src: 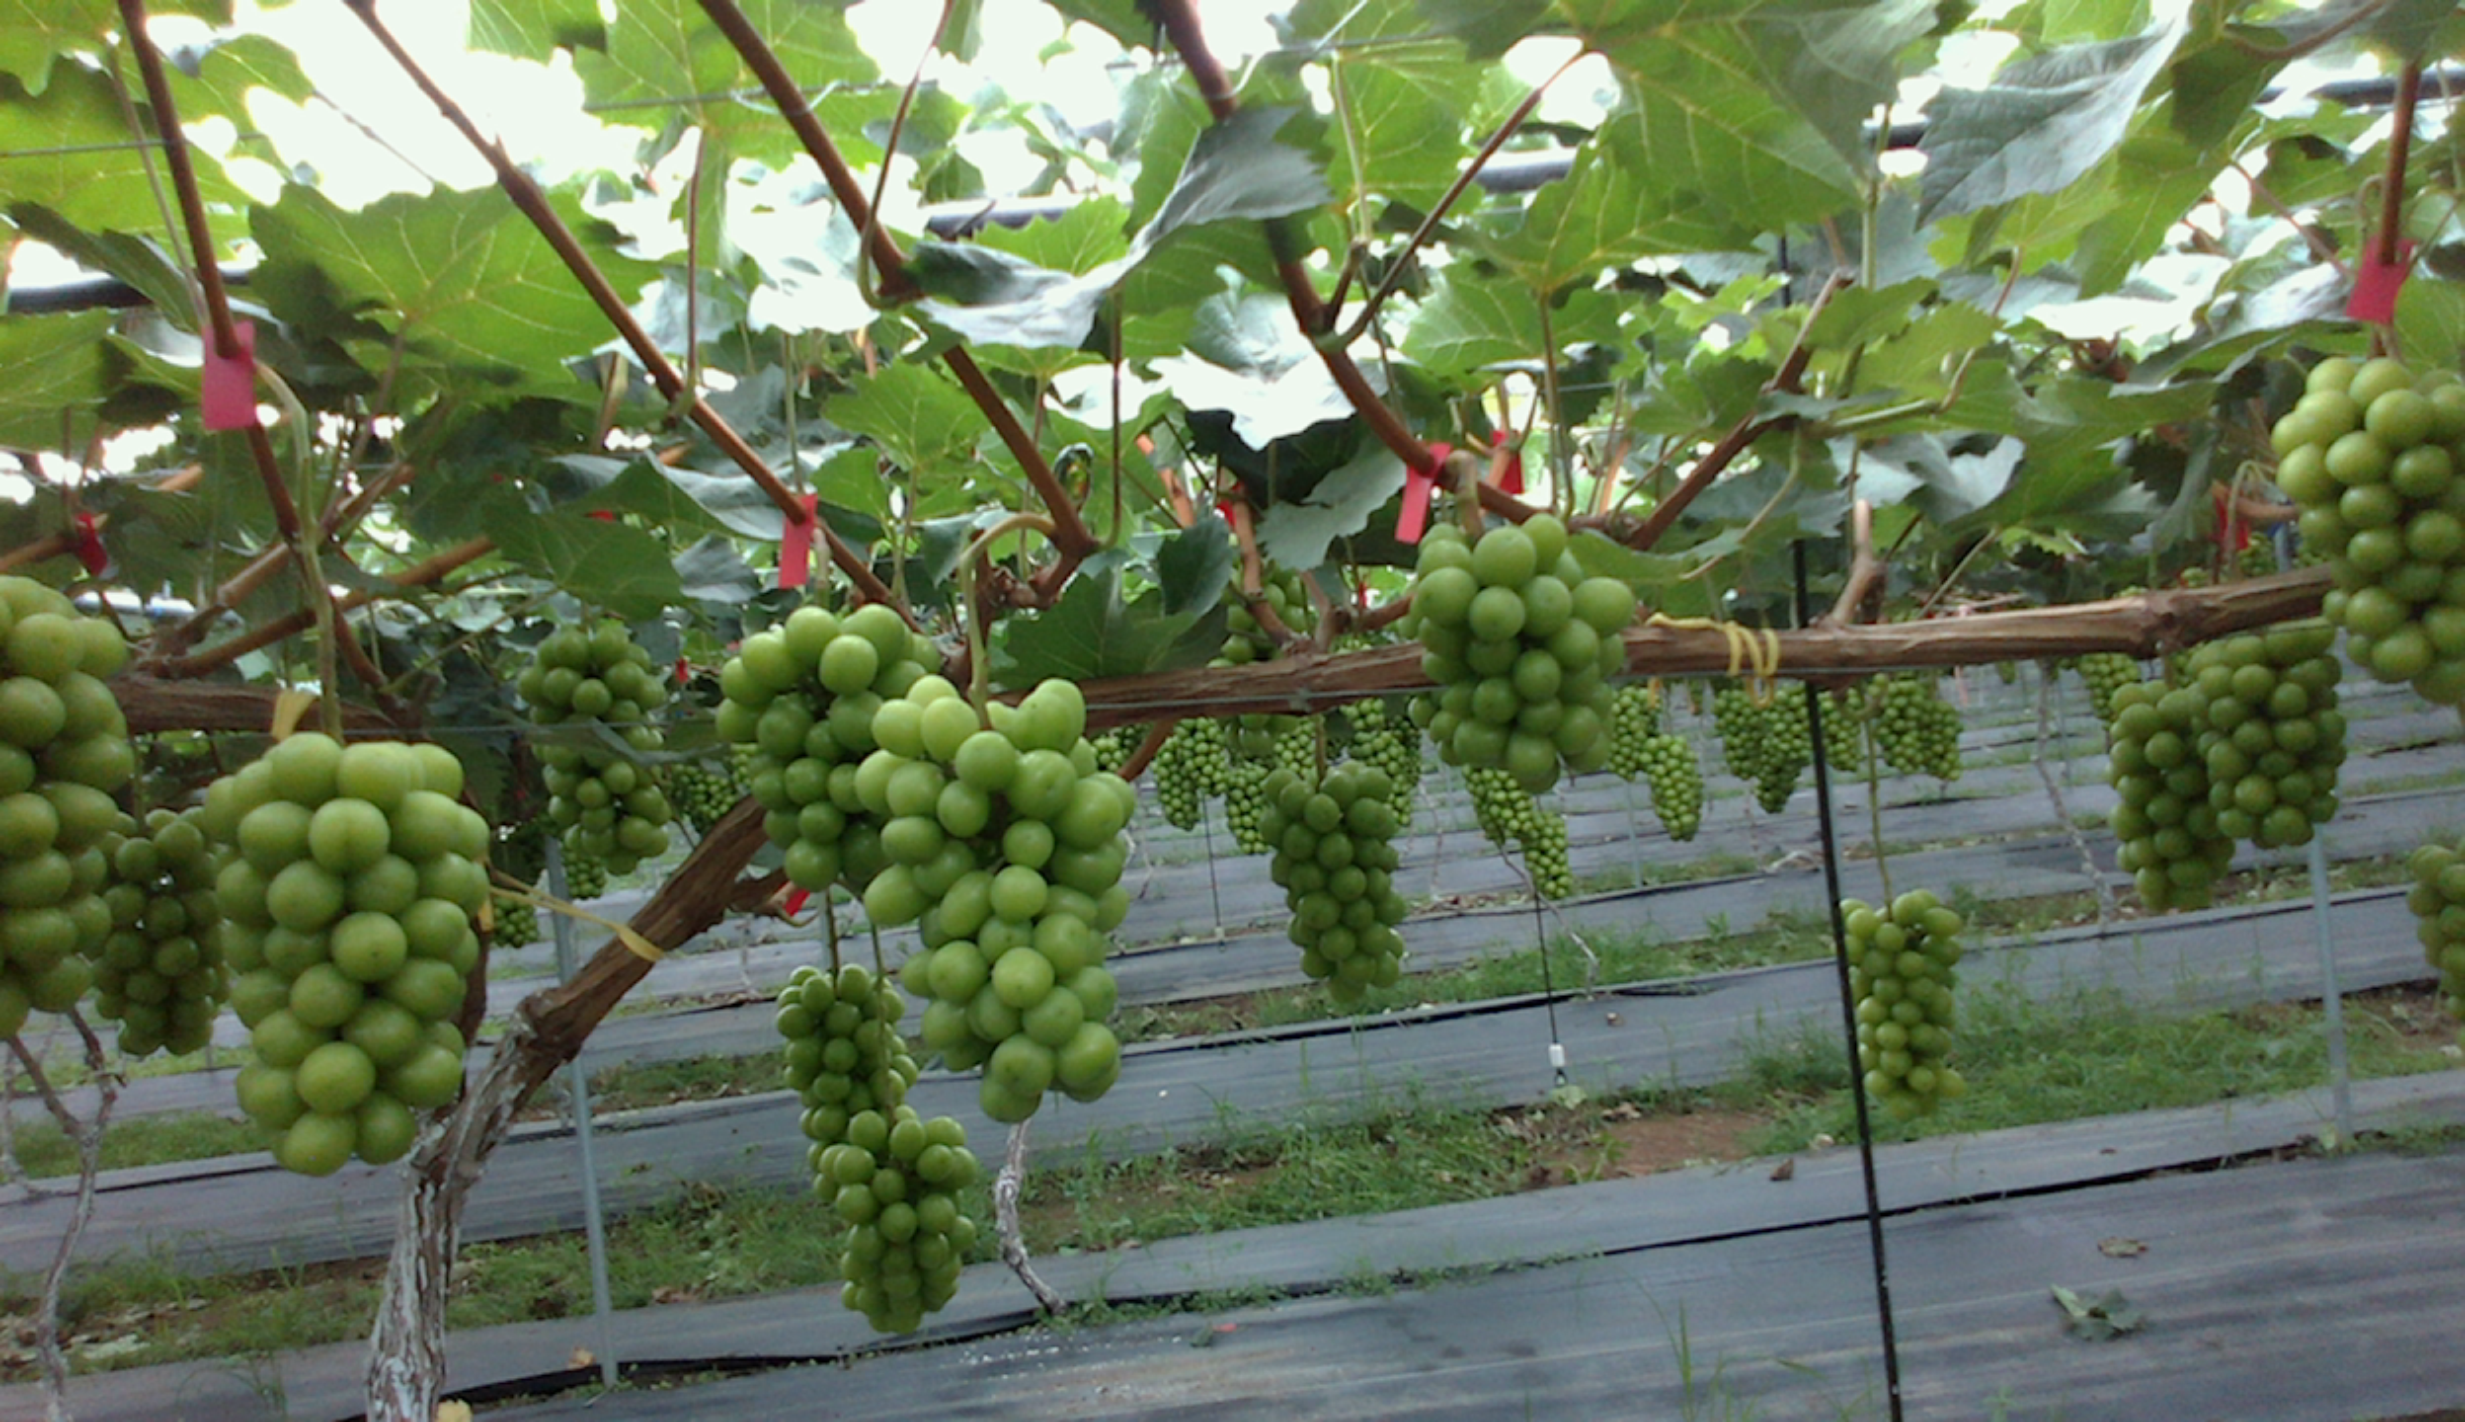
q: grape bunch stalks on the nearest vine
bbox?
[259,369,344,743]
[954,512,1045,729]
[2374,69,2422,369]
[814,533,830,610]
[1448,450,1485,535]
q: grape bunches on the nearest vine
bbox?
[715,604,940,895]
[203,733,496,1177]
[1416,512,1635,794]
[853,675,1132,1126]
[2269,357,2463,713]
[0,579,134,1037]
